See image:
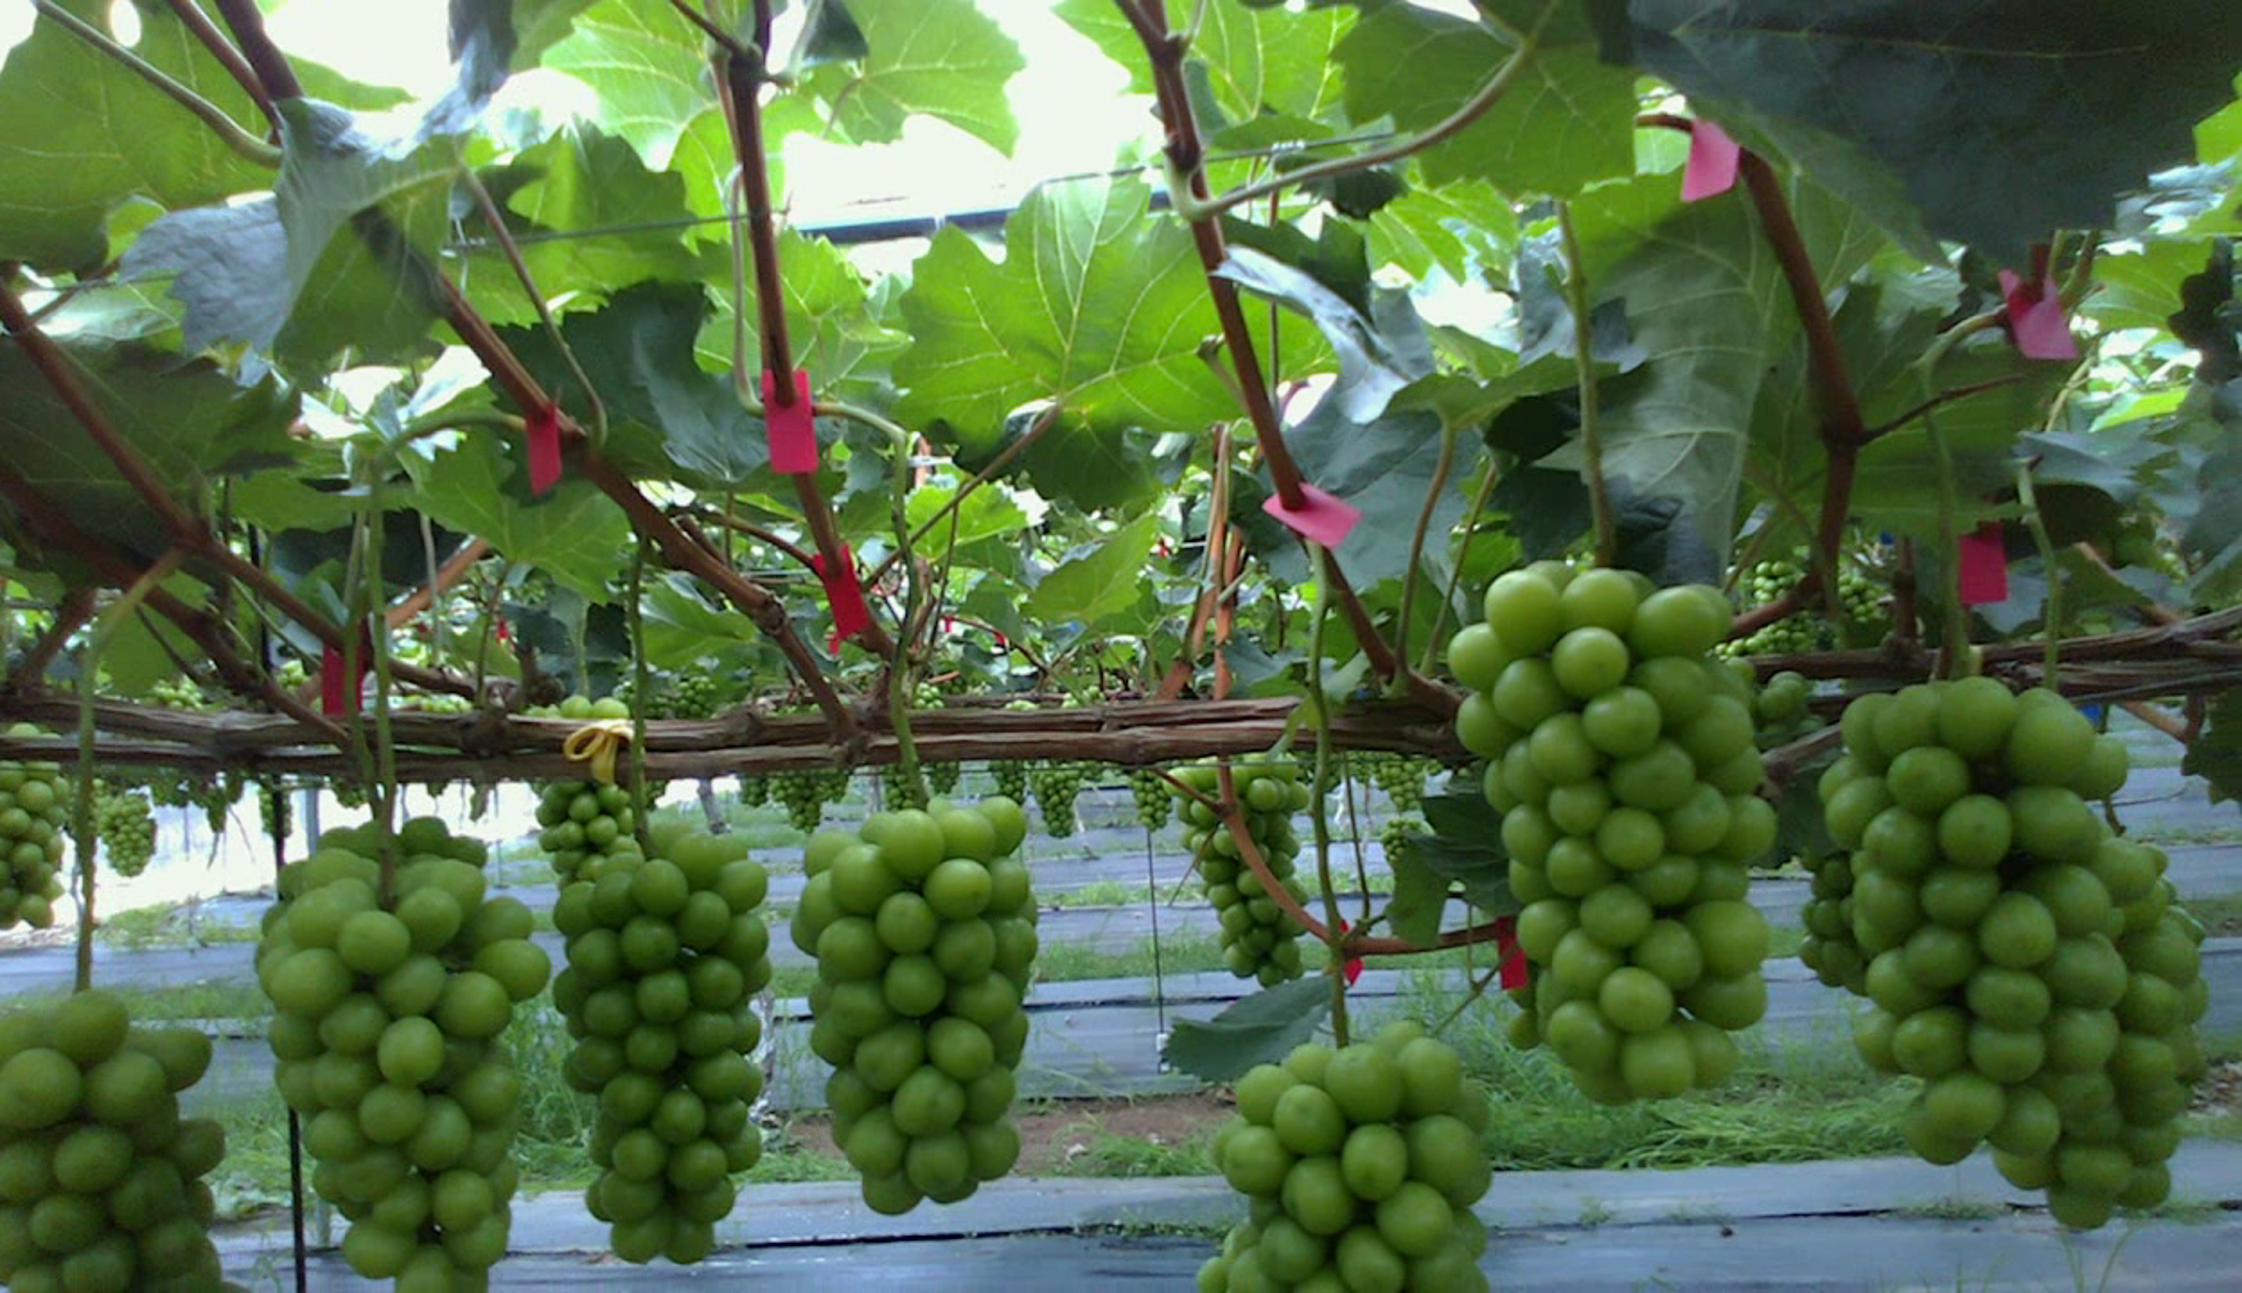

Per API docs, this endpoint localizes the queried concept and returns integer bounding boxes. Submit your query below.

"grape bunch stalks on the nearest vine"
[68,566,167,990]
[1554,201,1610,564]
[2017,469,2064,686]
[1919,312,1990,675]
[366,408,510,902]
[631,539,652,855]
[1302,542,1349,1042]
[835,406,927,805]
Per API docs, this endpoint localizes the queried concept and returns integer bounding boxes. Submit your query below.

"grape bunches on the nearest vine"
[0,991,244,1291]
[259,848,552,1291]
[2048,848,2211,1232]
[1820,675,2156,1185]
[1446,560,1775,1110]
[1202,1020,1495,1291]
[553,817,774,1262]
[789,797,1038,1218]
